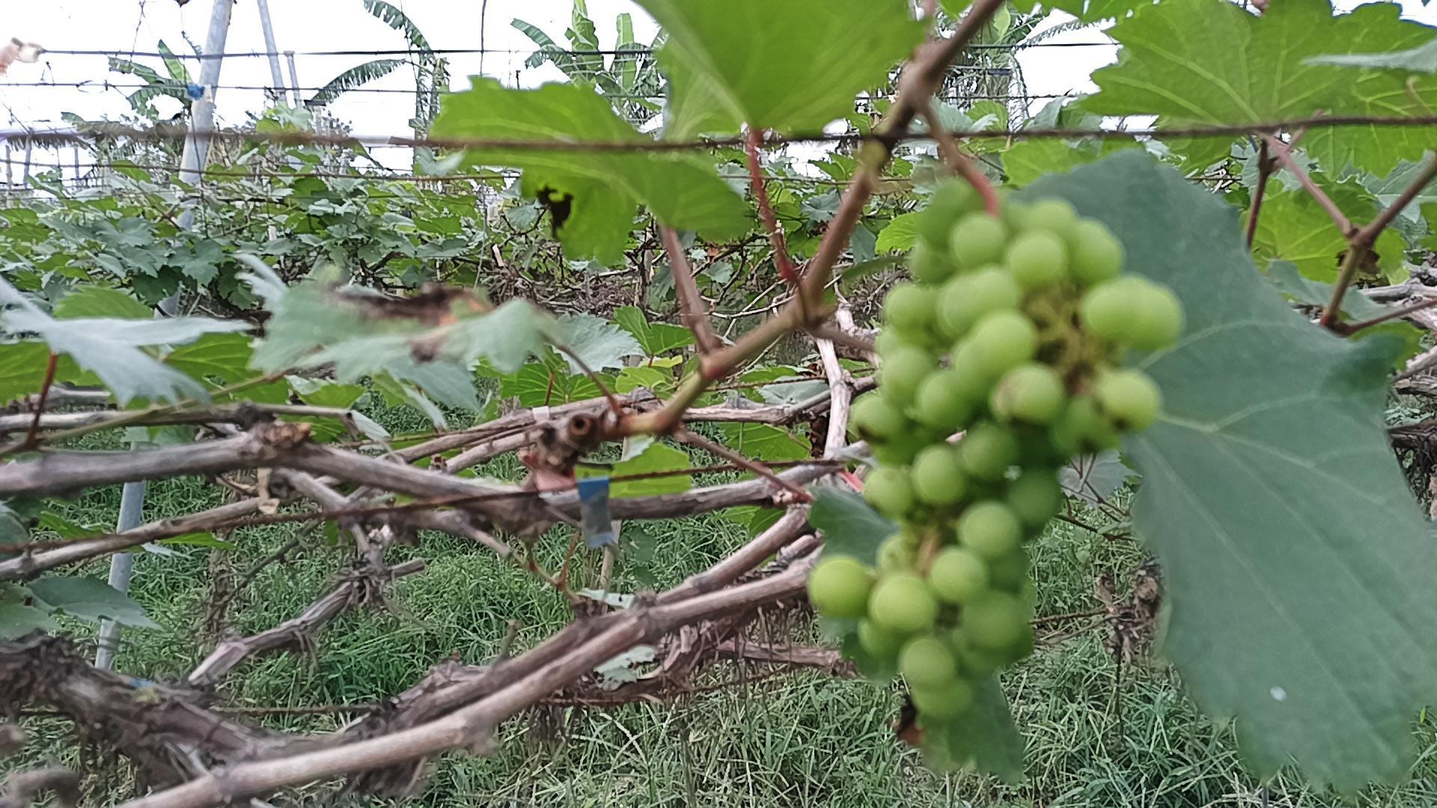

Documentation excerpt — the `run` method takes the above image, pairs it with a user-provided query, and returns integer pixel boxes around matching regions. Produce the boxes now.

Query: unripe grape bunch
[808,184,1182,724]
